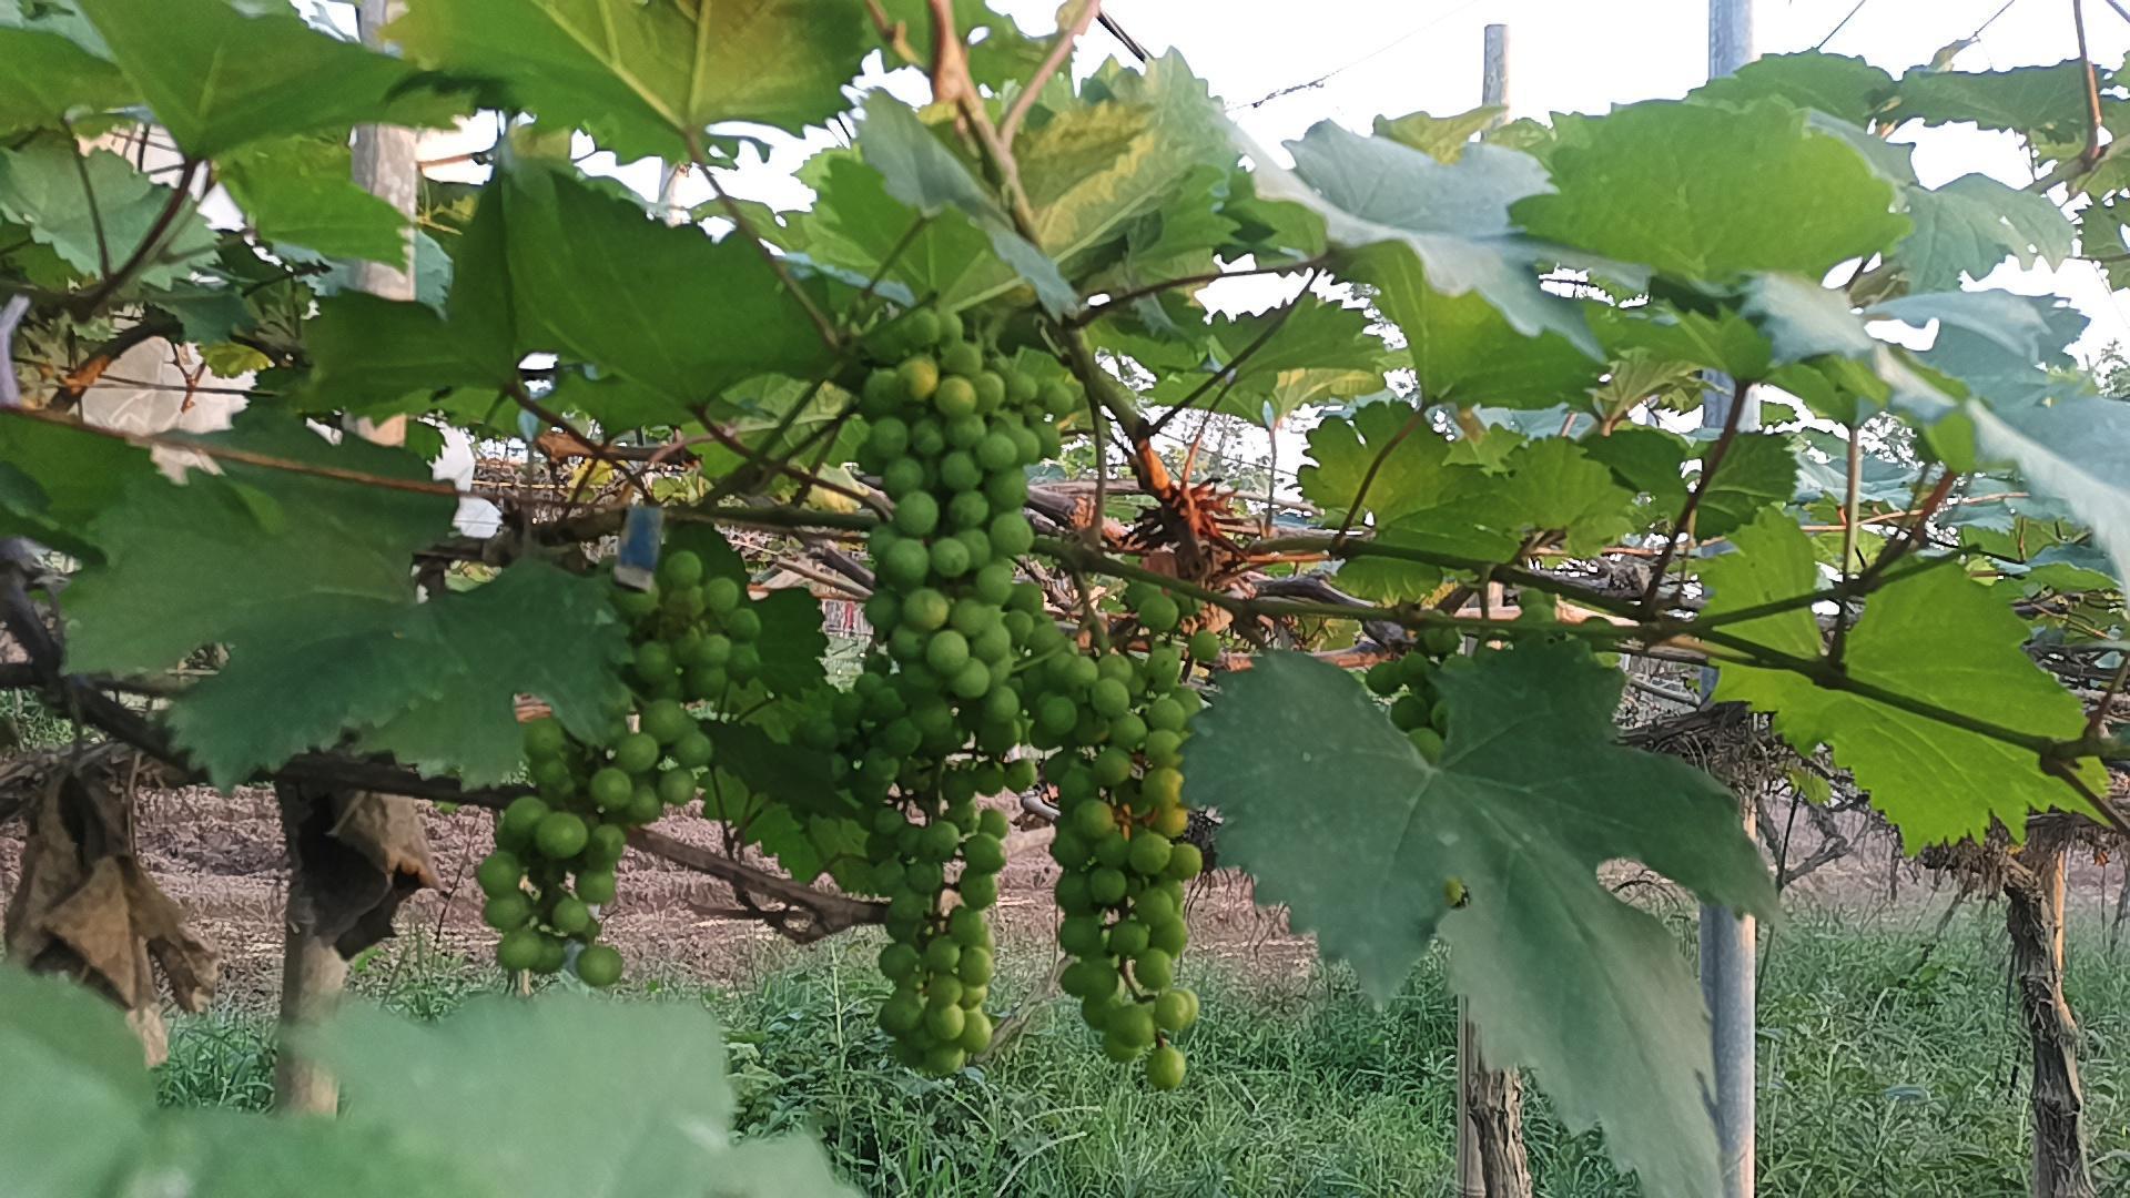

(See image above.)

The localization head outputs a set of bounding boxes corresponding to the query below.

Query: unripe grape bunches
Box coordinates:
[1365,589,1619,760]
[1025,586,1218,1088]
[793,664,1034,1075]
[477,526,762,985]
[859,309,1079,754]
